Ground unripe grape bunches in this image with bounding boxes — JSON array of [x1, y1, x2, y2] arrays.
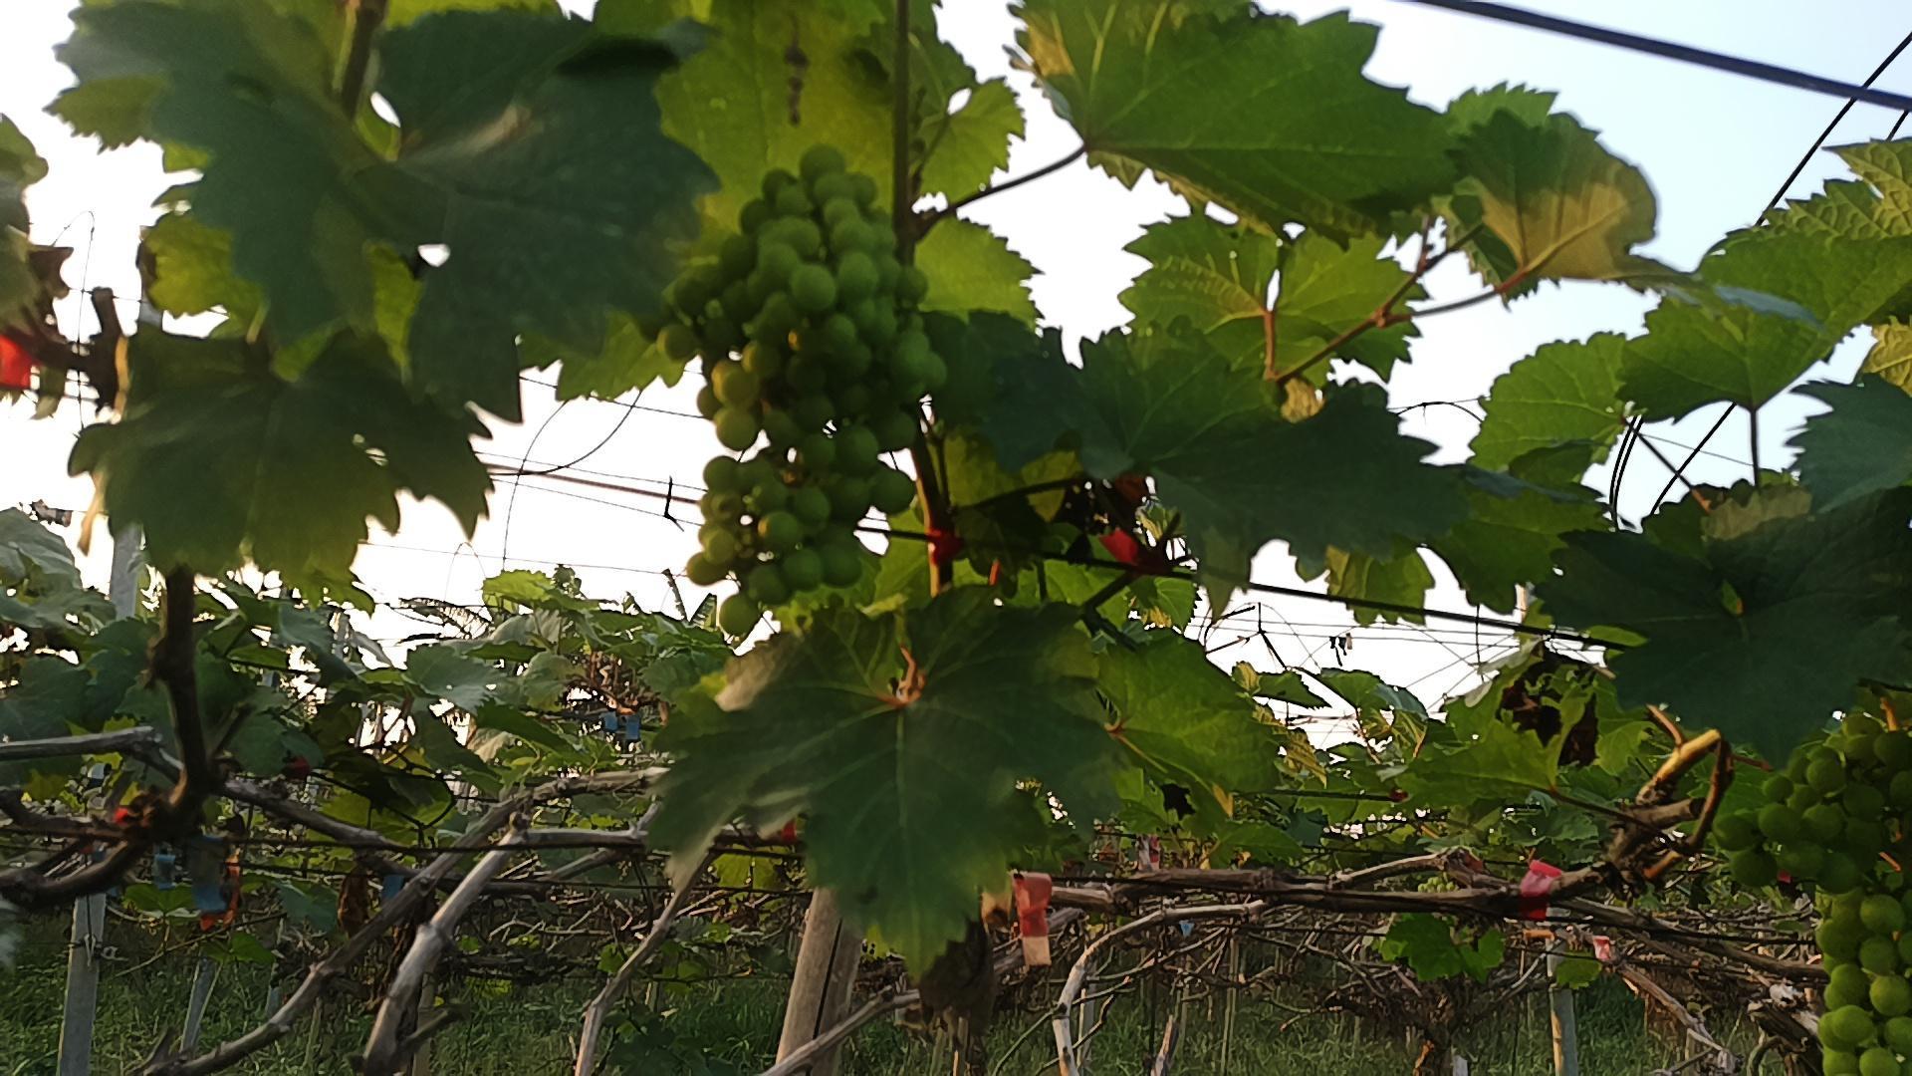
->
[[1712, 689, 1911, 1075], [657, 142, 947, 636], [1418, 872, 1460, 926]]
